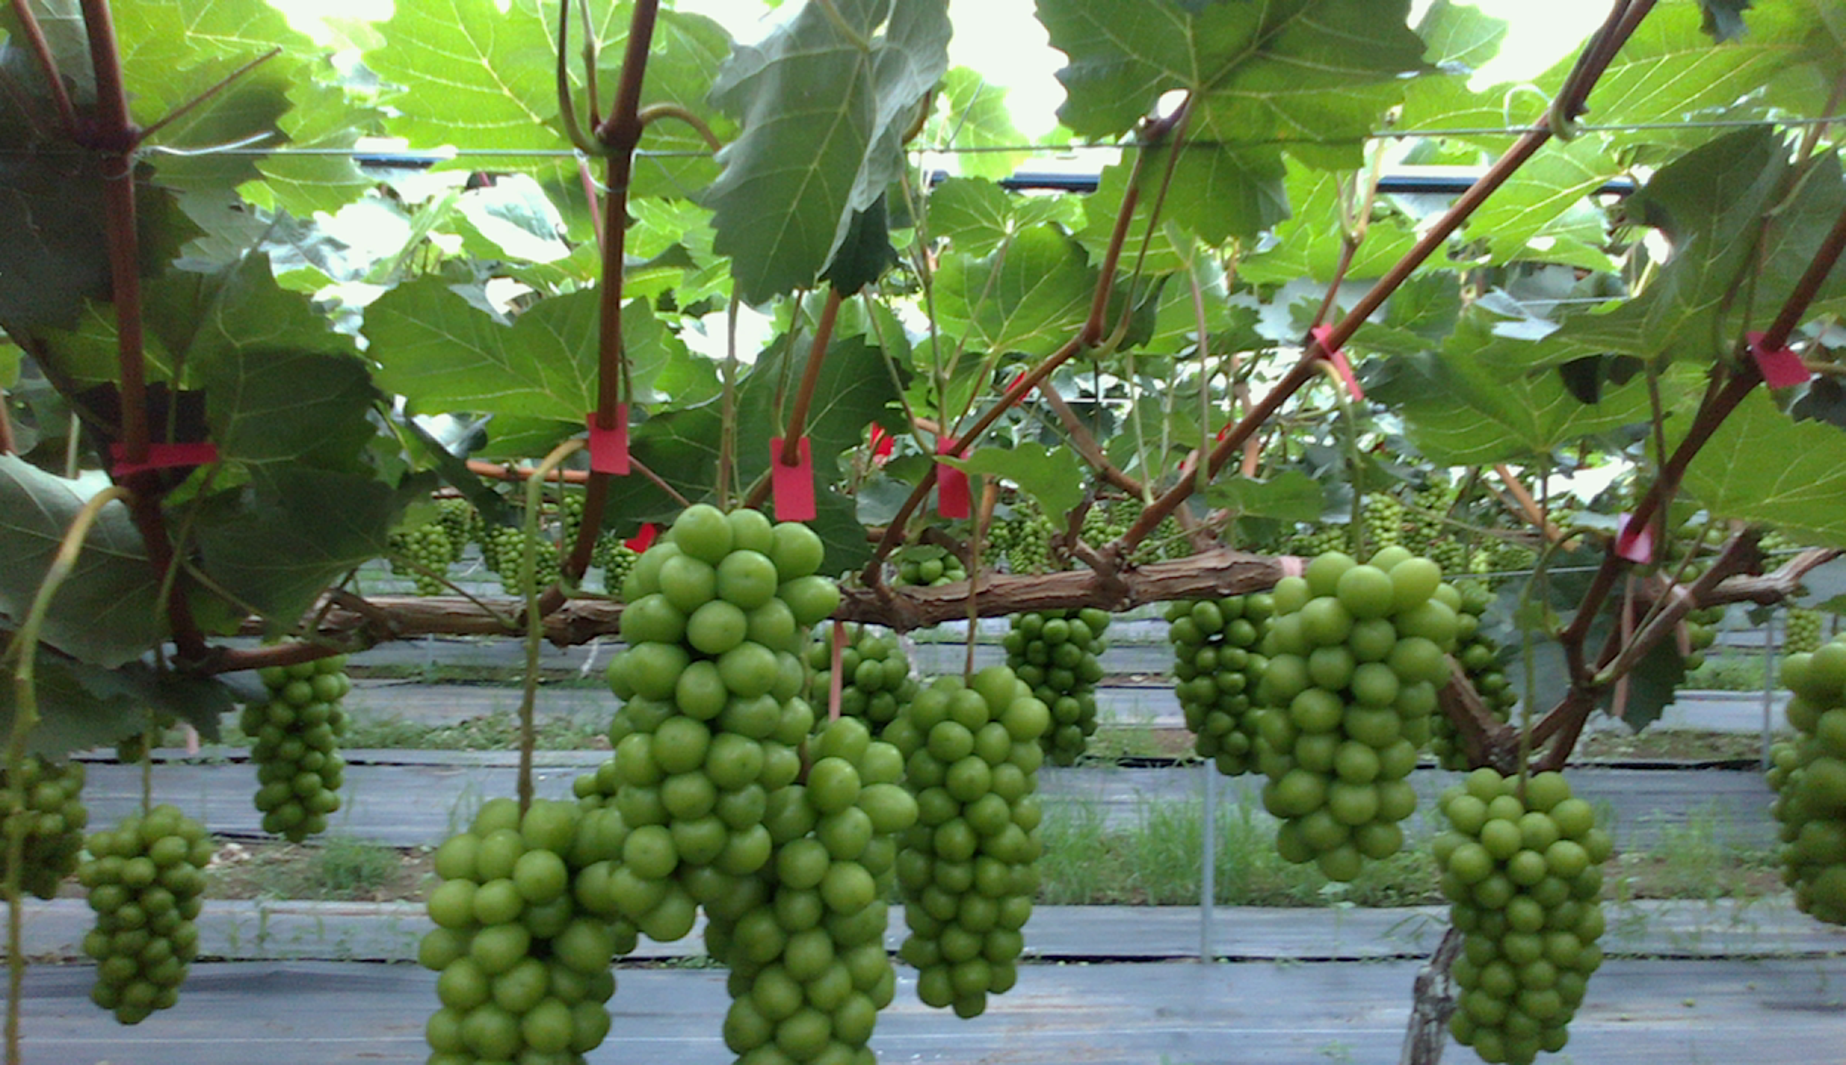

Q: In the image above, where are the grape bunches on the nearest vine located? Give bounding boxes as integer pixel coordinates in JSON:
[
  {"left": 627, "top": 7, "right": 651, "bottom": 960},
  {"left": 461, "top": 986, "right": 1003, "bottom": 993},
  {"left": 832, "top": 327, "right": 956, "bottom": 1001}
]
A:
[
  {"left": 1256, "top": 547, "right": 1461, "bottom": 880},
  {"left": 1435, "top": 769, "right": 1614, "bottom": 1064},
  {"left": 574, "top": 504, "right": 840, "bottom": 942},
  {"left": 886, "top": 666, "right": 1050, "bottom": 1021},
  {"left": 704, "top": 717, "right": 919, "bottom": 1064},
  {"left": 417, "top": 794, "right": 636, "bottom": 1064}
]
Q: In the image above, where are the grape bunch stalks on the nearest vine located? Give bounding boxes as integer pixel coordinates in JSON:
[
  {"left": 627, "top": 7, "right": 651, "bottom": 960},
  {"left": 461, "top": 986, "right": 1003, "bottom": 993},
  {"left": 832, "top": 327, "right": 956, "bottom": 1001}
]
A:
[
  {"left": 717, "top": 293, "right": 738, "bottom": 510},
  {"left": 799, "top": 642, "right": 812, "bottom": 787},
  {"left": 1, "top": 487, "right": 138, "bottom": 1064},
  {"left": 1315, "top": 358, "right": 1365, "bottom": 562},
  {"left": 964, "top": 501, "right": 979, "bottom": 683},
  {"left": 518, "top": 436, "right": 589, "bottom": 819},
  {"left": 1519, "top": 525, "right": 1617, "bottom": 802}
]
